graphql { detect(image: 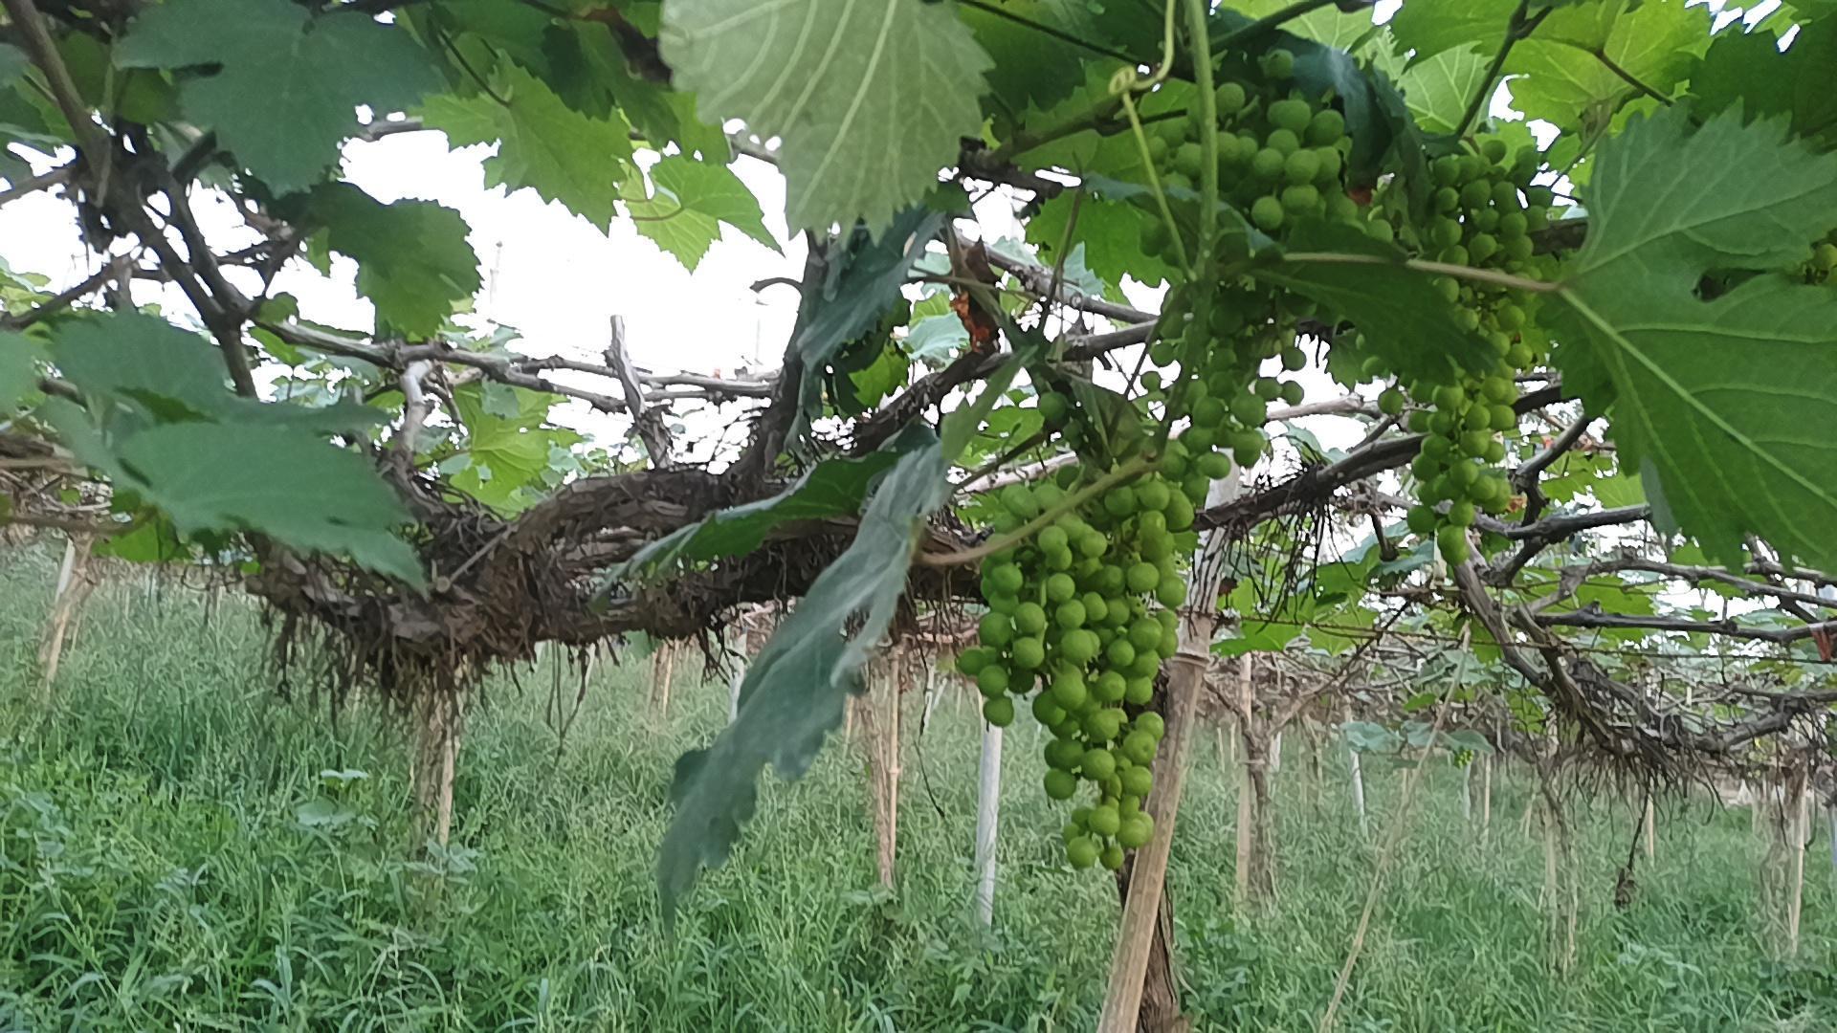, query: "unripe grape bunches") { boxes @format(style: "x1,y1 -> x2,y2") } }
956,392 -> 1188,868
1140,282 -> 1306,506
1356,140 -> 1554,564
1140,49 -> 1391,271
